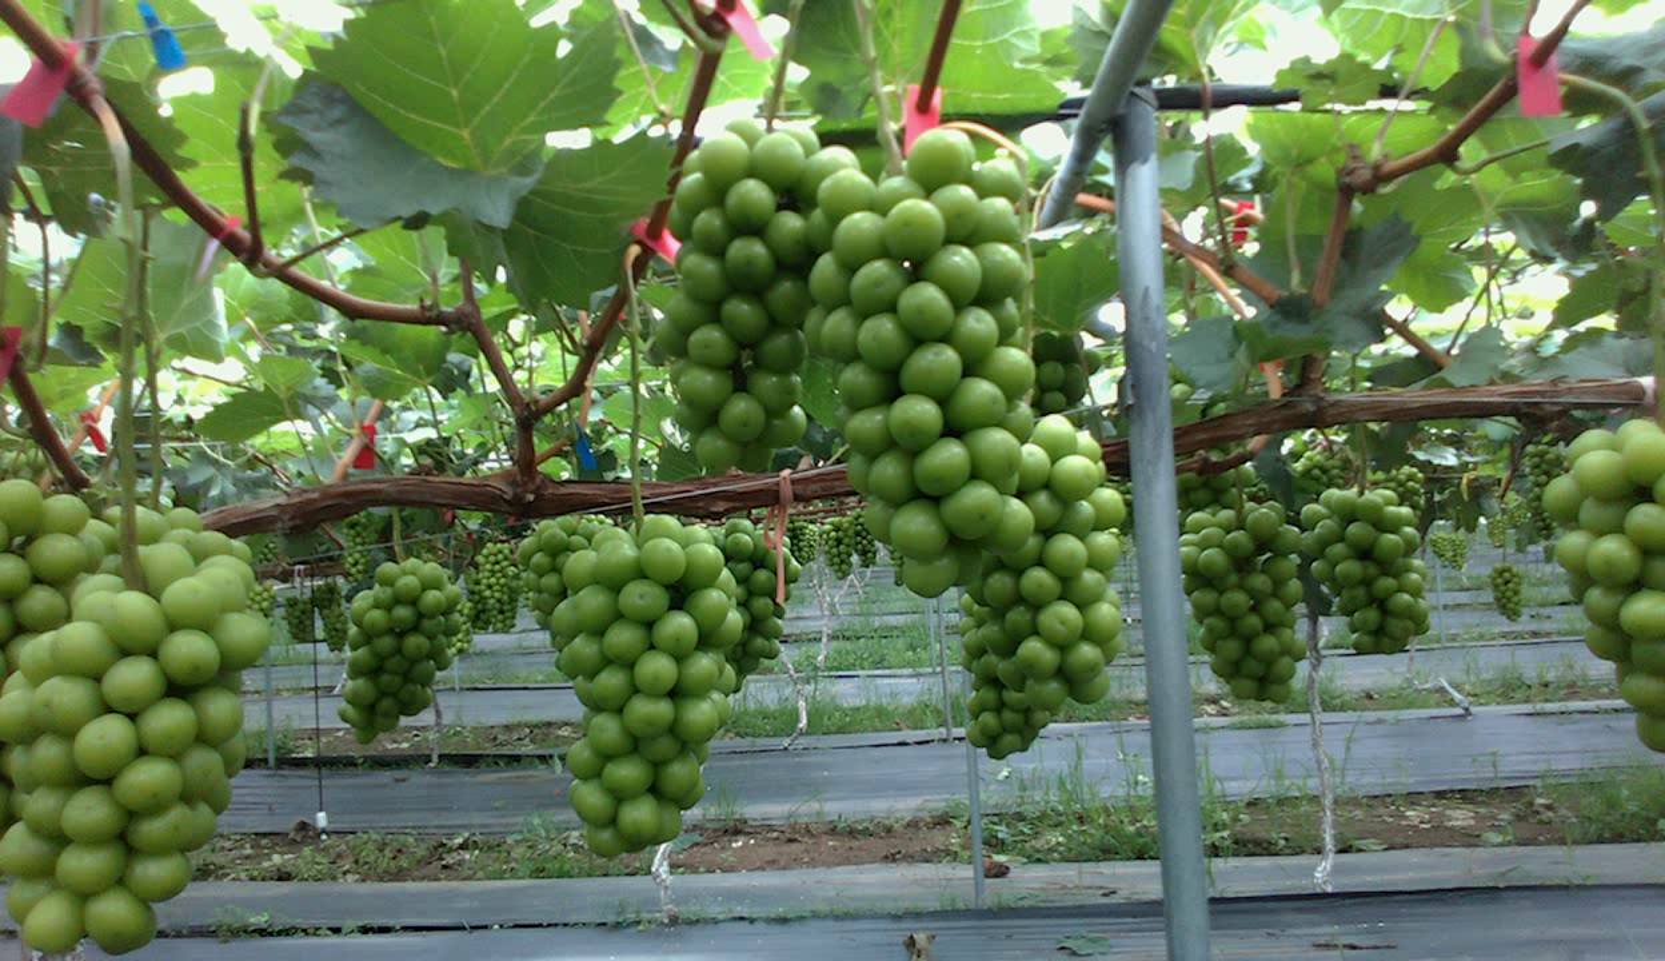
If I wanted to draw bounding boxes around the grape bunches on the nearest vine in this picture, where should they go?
[1,506,272,956]
[978,414,1126,713]
[1542,419,1664,757]
[803,128,1037,598]
[550,514,743,858]
[655,120,861,474]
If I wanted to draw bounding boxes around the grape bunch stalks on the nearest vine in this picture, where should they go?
[1558,72,1664,435]
[620,243,646,534]
[85,92,155,591]
[941,120,1035,355]
[858,0,903,178]
[764,0,806,132]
